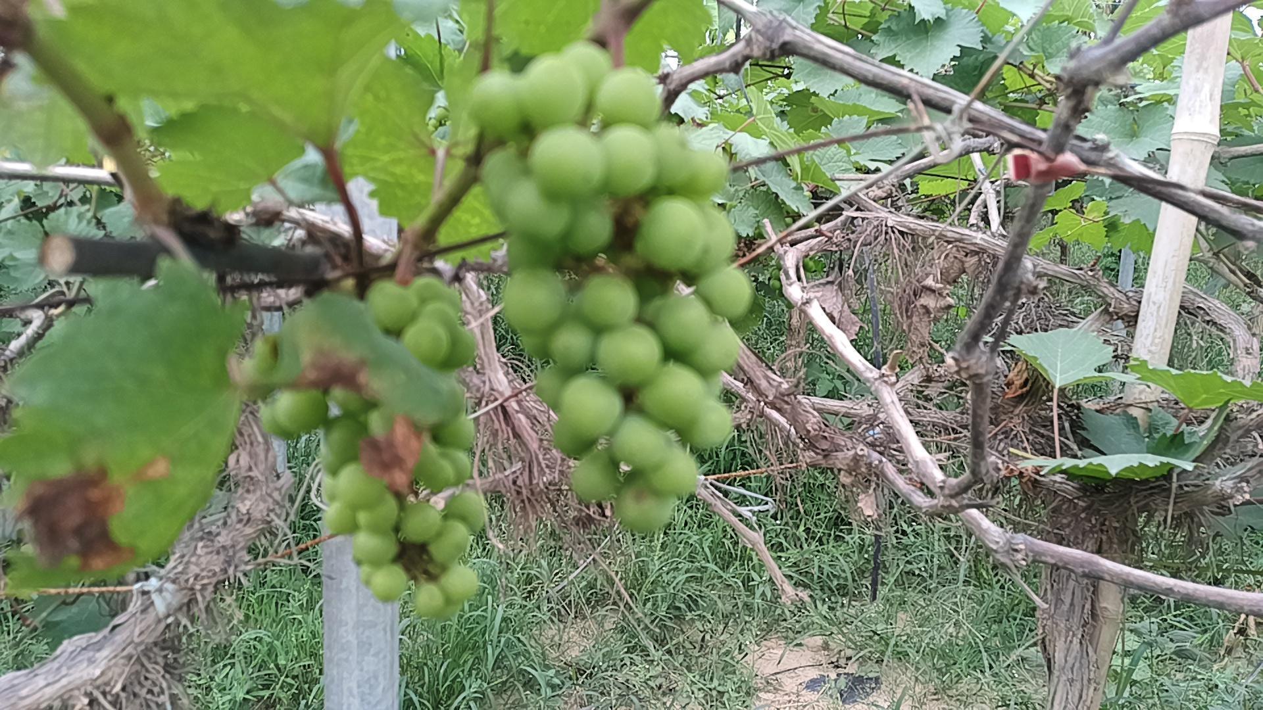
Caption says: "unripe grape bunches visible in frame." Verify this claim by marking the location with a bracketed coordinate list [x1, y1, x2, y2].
[770, 257, 816, 309]
[233, 277, 485, 617]
[466, 44, 749, 532]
